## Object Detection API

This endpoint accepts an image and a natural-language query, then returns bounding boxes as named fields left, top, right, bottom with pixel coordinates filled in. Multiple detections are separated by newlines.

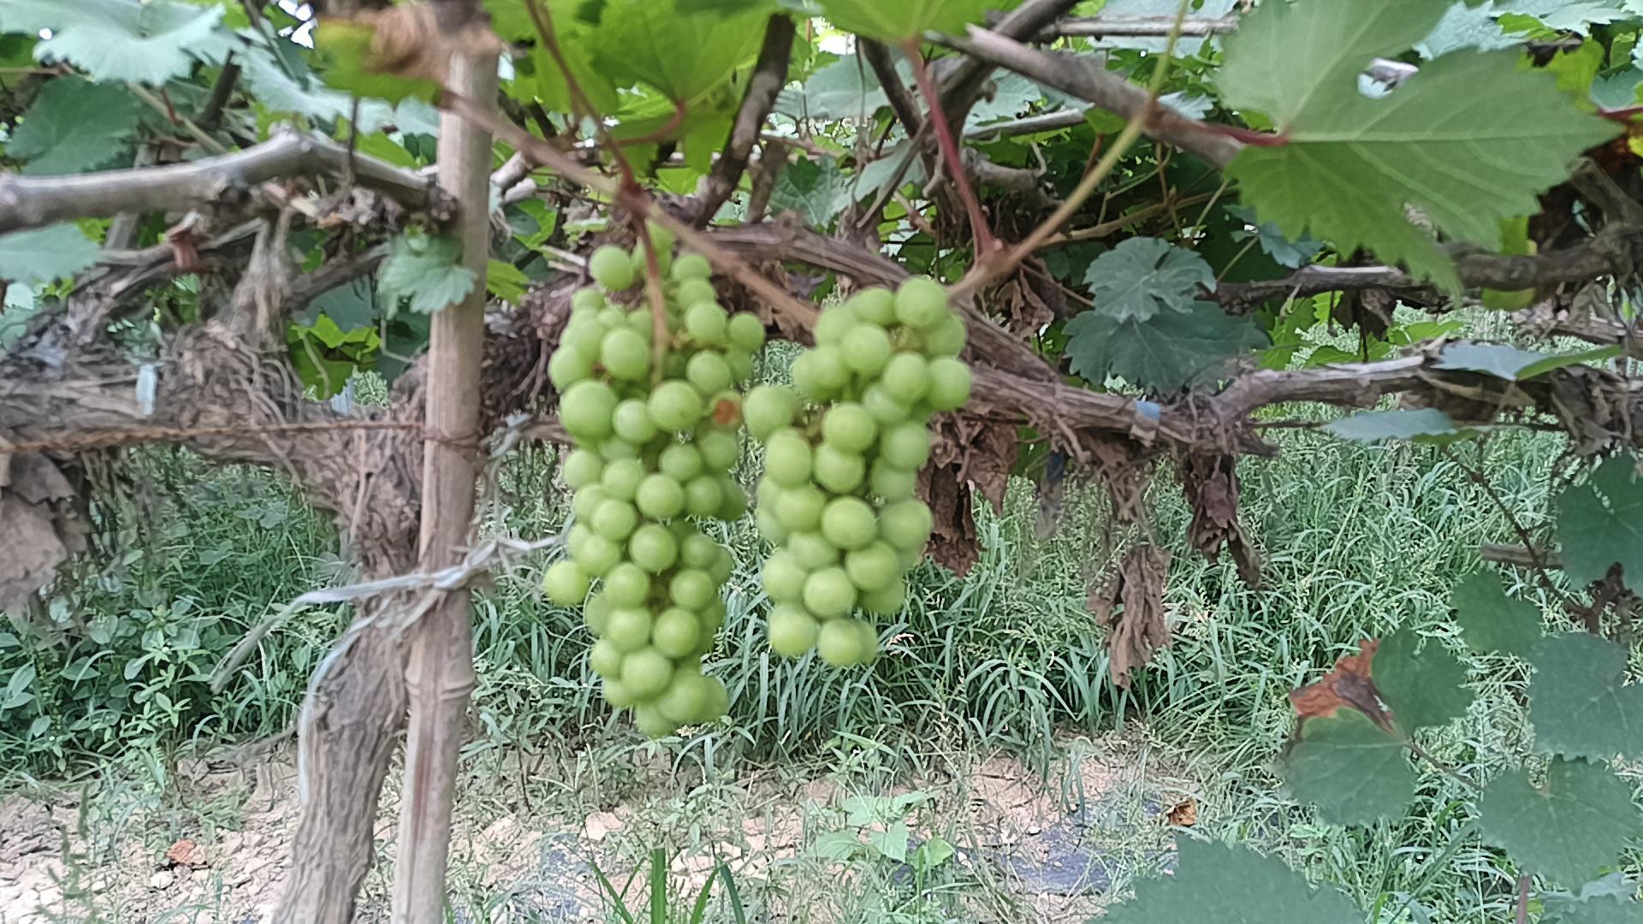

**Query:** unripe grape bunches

left=543, top=256, right=763, bottom=736
left=745, top=279, right=971, bottom=666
